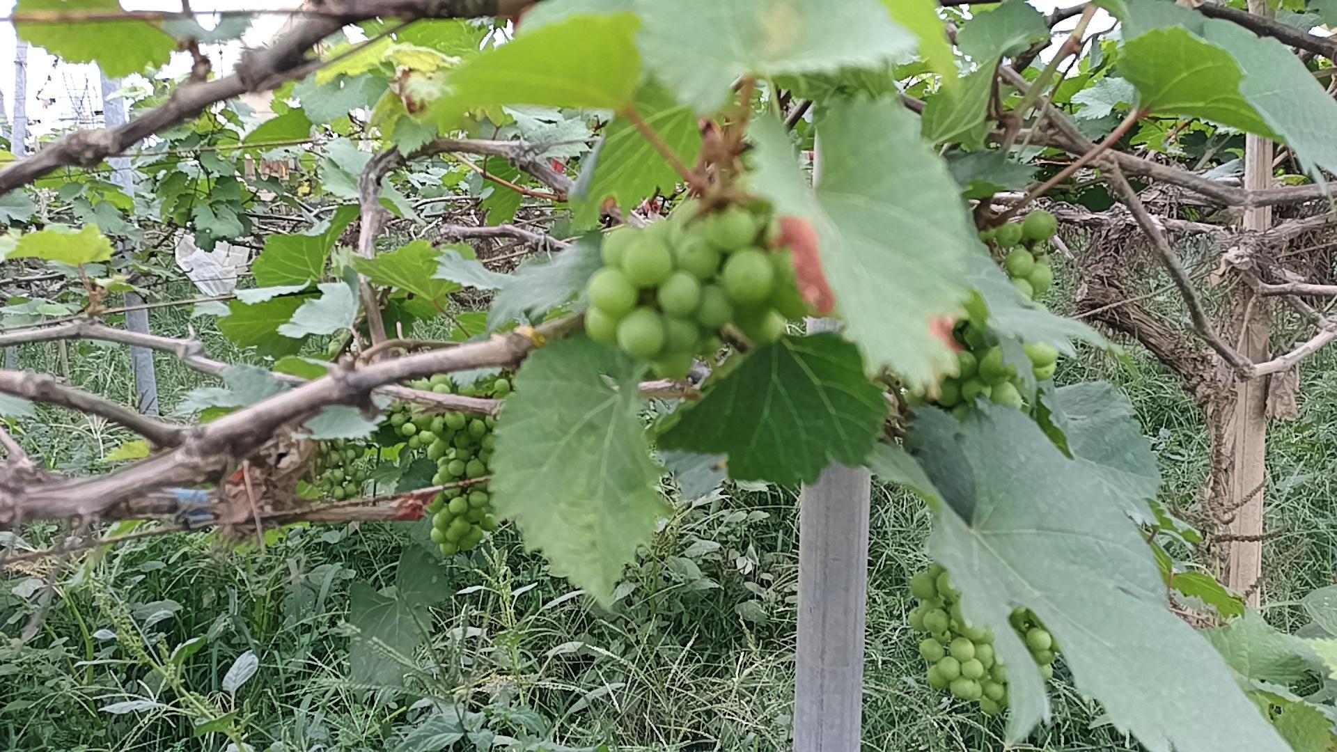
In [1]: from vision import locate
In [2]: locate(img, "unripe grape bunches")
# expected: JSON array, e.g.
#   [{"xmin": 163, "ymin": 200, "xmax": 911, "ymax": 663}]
[
  {"xmin": 585, "ymin": 201, "xmax": 807, "ymax": 380},
  {"xmin": 908, "ymin": 565, "xmax": 1063, "ymax": 714},
  {"xmin": 938, "ymin": 210, "xmax": 1059, "ymax": 409},
  {"xmin": 317, "ymin": 437, "xmax": 368, "ymax": 499},
  {"xmin": 387, "ymin": 372, "xmax": 516, "ymax": 556}
]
